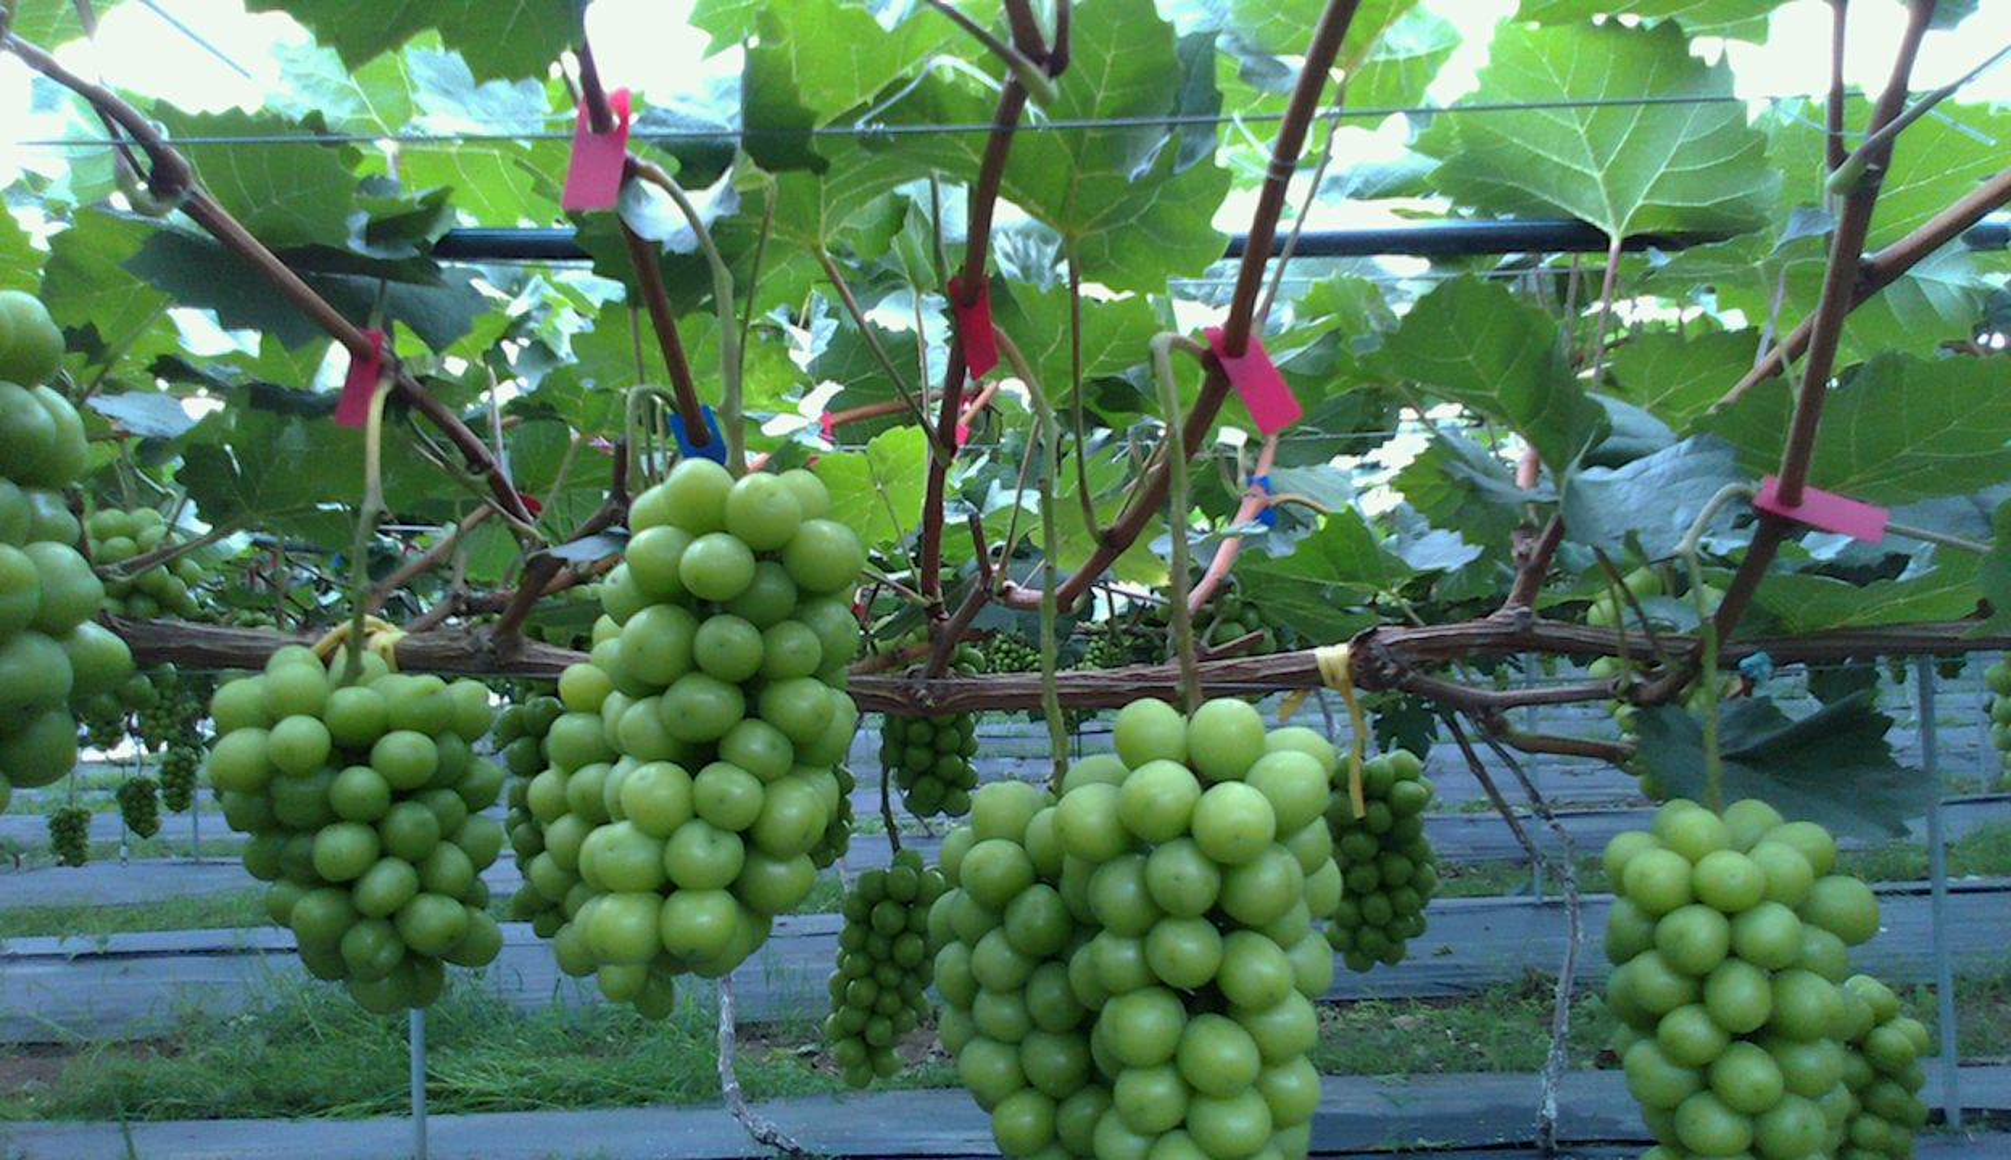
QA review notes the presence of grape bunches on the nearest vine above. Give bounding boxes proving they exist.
[206,643,506,1018]
[1046,696,1344,1158]
[0,293,131,806]
[920,781,1104,1158]
[1600,796,1879,1157]
[527,458,864,1025]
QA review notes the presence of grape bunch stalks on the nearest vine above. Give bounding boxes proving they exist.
[624,151,744,477]
[338,385,387,686]
[1149,330,1204,715]
[1661,483,1750,814]
[994,324,1068,794]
